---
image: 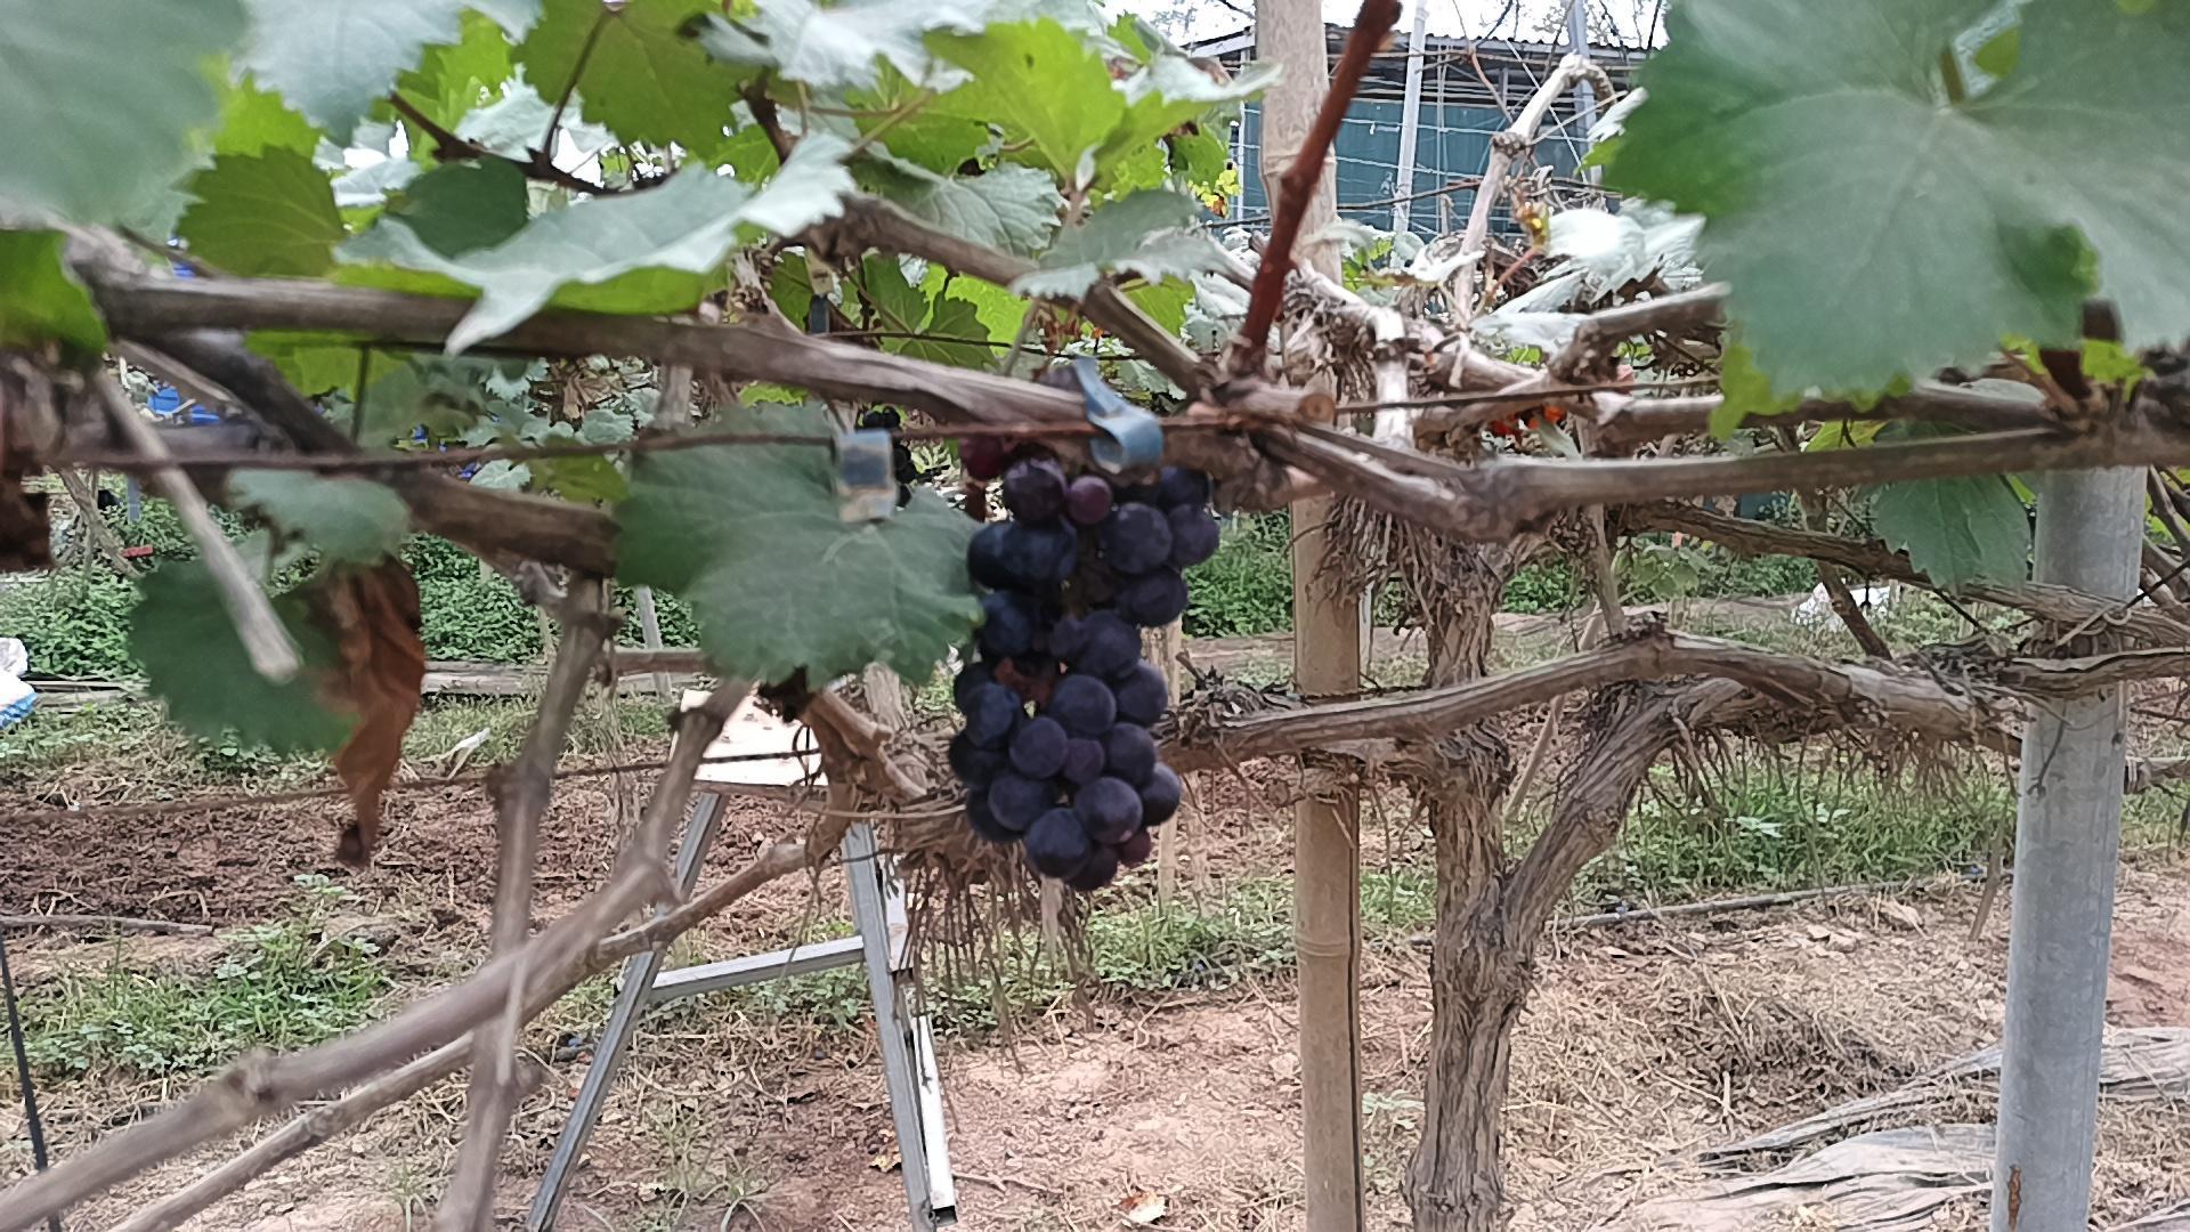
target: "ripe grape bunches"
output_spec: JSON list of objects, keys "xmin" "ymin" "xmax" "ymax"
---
[
  {"xmin": 854, "ymin": 404, "xmax": 919, "ymax": 506},
  {"xmin": 949, "ymin": 461, "xmax": 1219, "ymax": 890}
]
